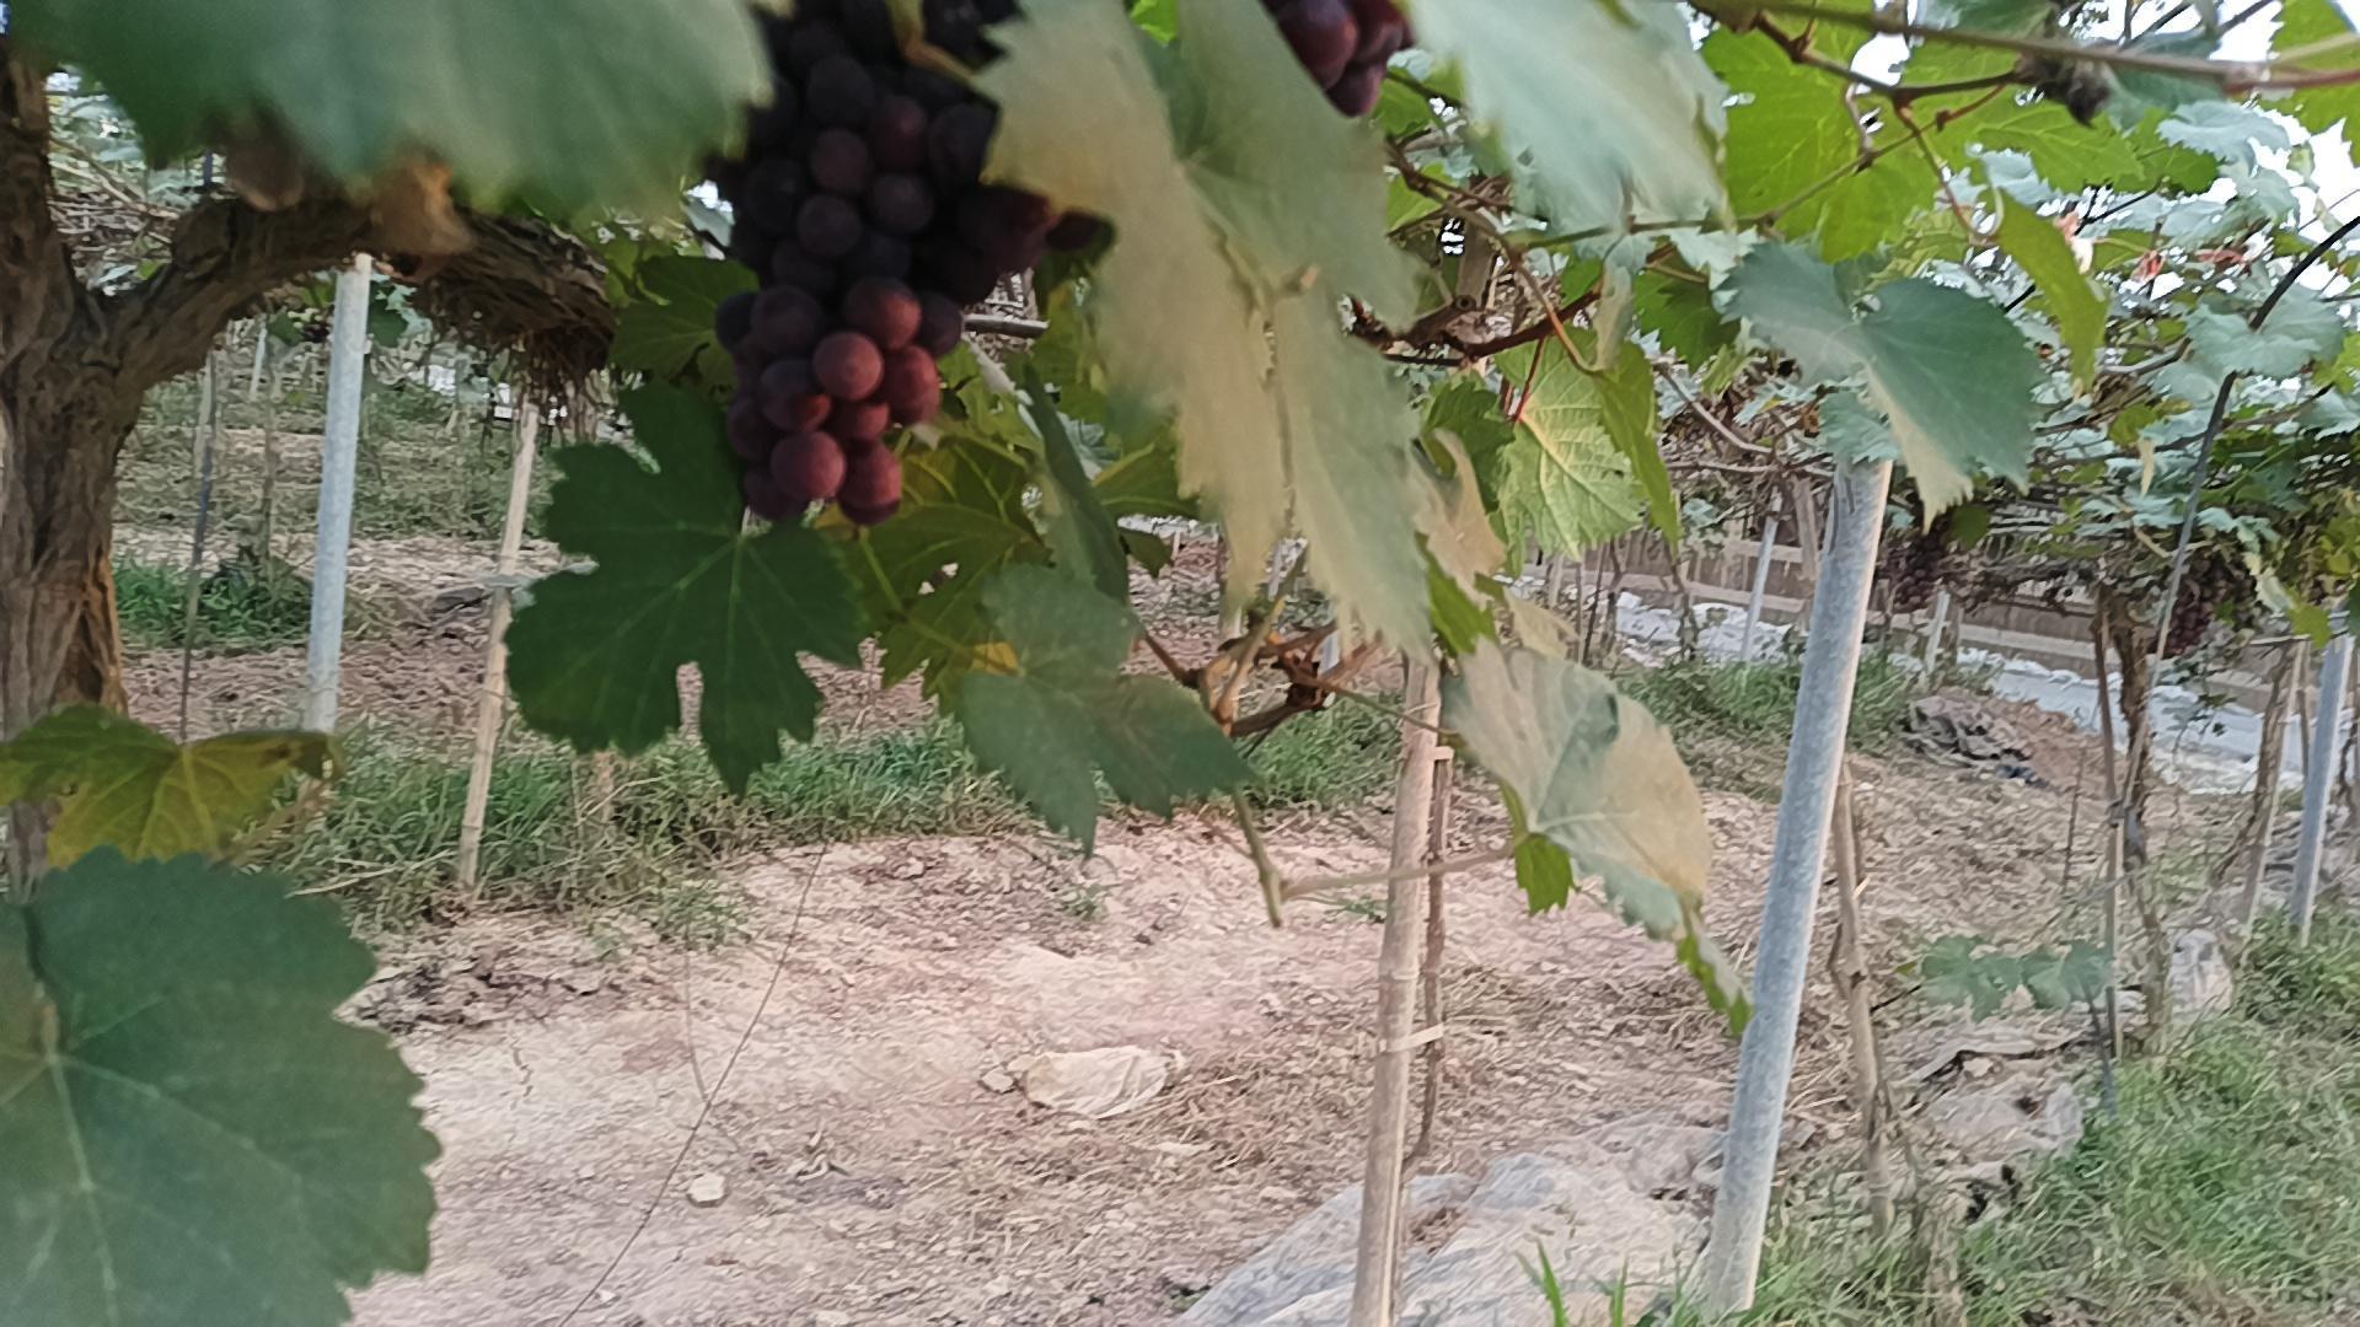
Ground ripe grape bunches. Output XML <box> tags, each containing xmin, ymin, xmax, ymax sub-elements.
<box><xmin>710</xmin><ymin>0</ymin><xmax>1111</xmax><ymax>522</ymax></box>
<box><xmin>1262</xmin><ymin>0</ymin><xmax>1416</xmax><ymax>117</ymax></box>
